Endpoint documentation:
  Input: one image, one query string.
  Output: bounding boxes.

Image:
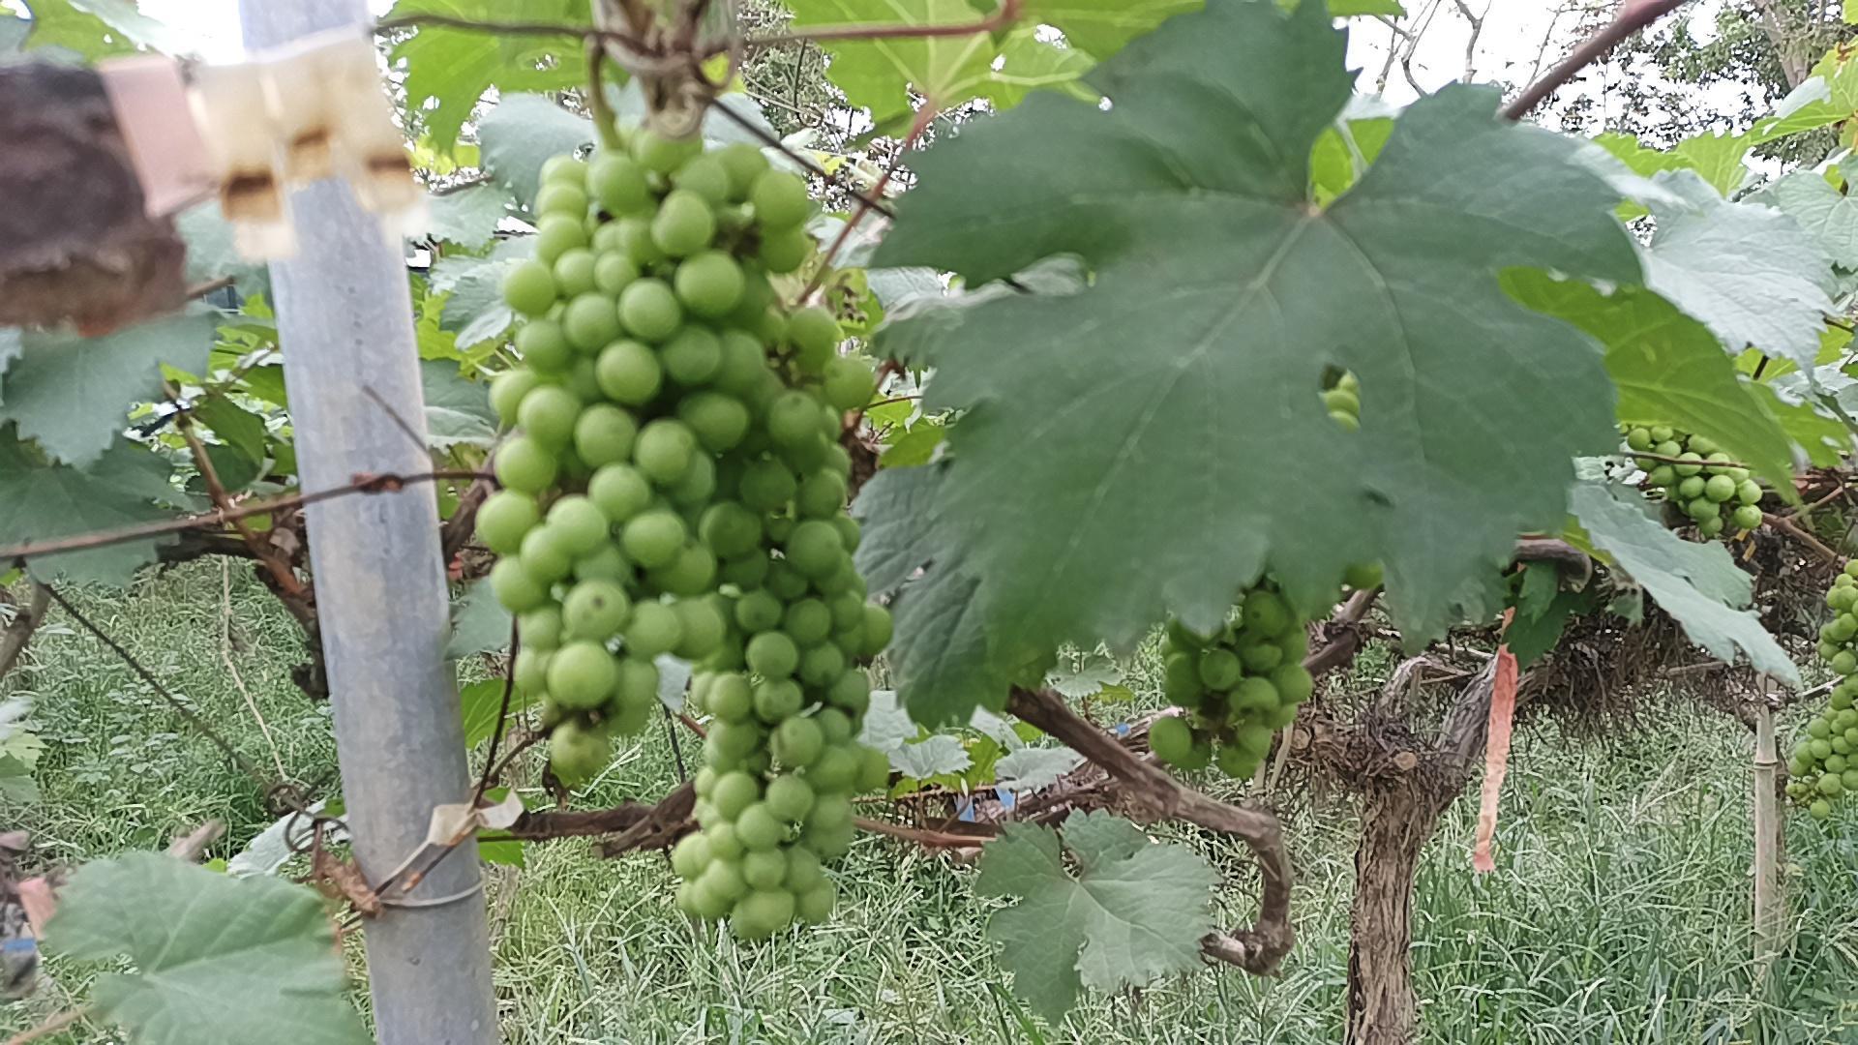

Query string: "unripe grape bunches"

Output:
[476,131,808,783]
[1627,426,1764,539]
[1150,581,1310,779]
[672,298,890,939]
[1786,557,1857,815]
